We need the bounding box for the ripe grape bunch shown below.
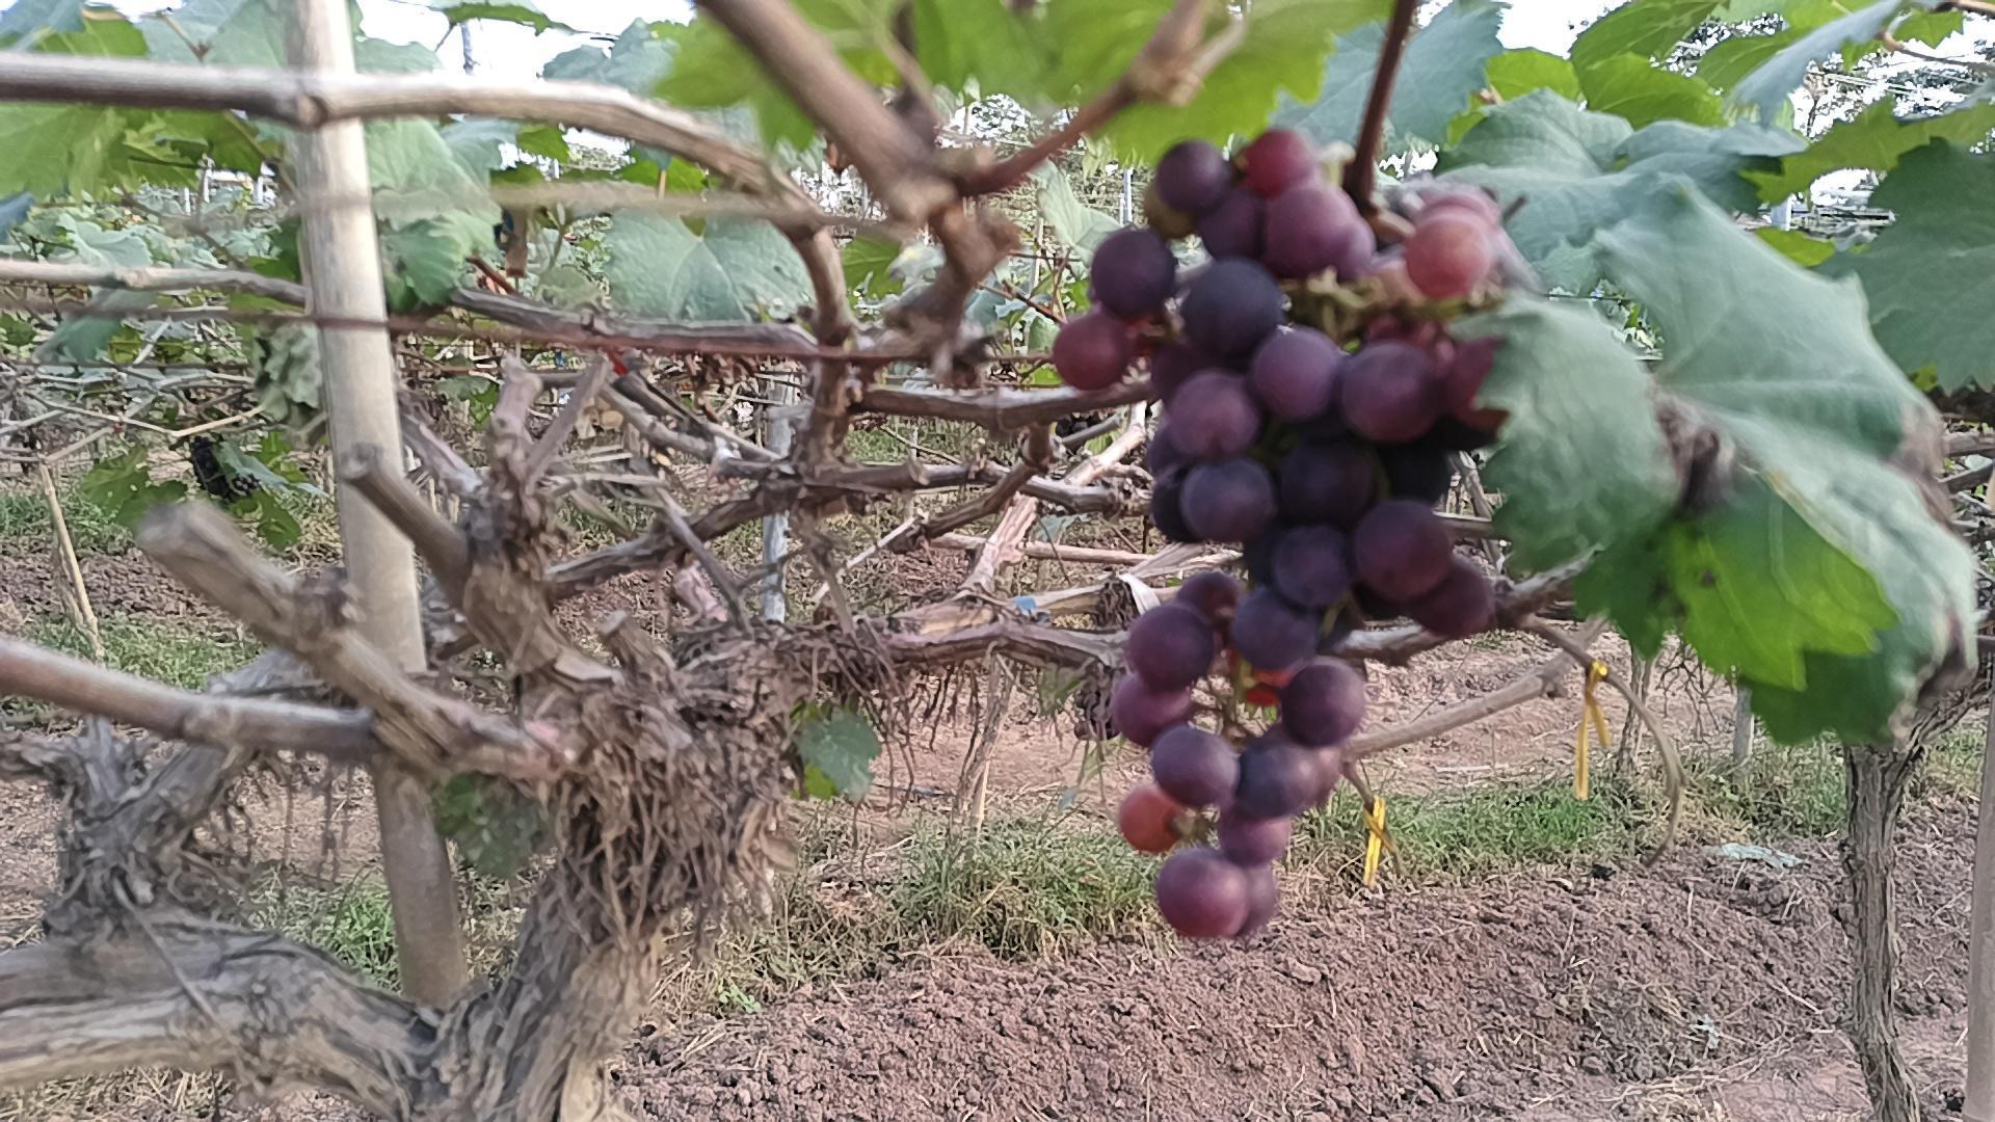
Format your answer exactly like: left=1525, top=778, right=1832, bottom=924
left=168, top=432, right=261, bottom=503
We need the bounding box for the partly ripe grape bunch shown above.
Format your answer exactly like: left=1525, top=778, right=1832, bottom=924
left=1053, top=130, right=1509, bottom=940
